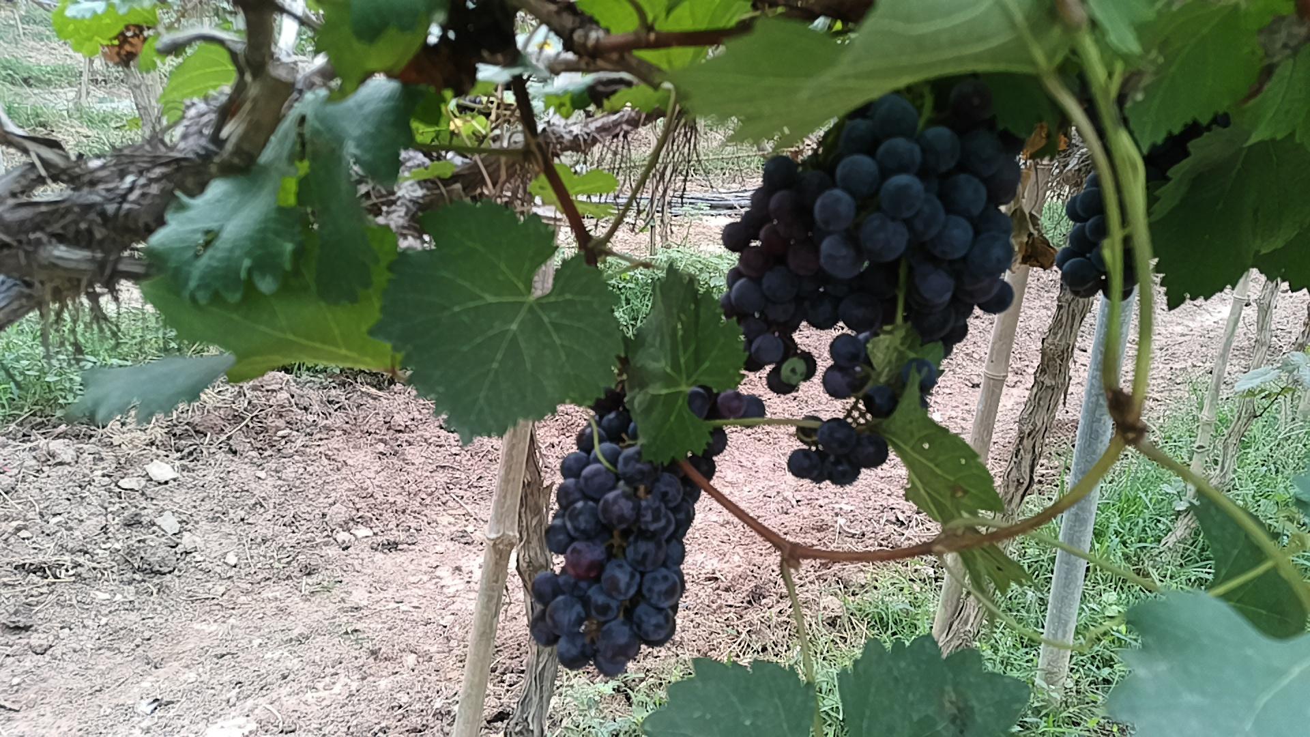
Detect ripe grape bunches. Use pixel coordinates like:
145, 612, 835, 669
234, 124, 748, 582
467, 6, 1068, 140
531, 386, 766, 676
720, 76, 1024, 484
1055, 77, 1227, 304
